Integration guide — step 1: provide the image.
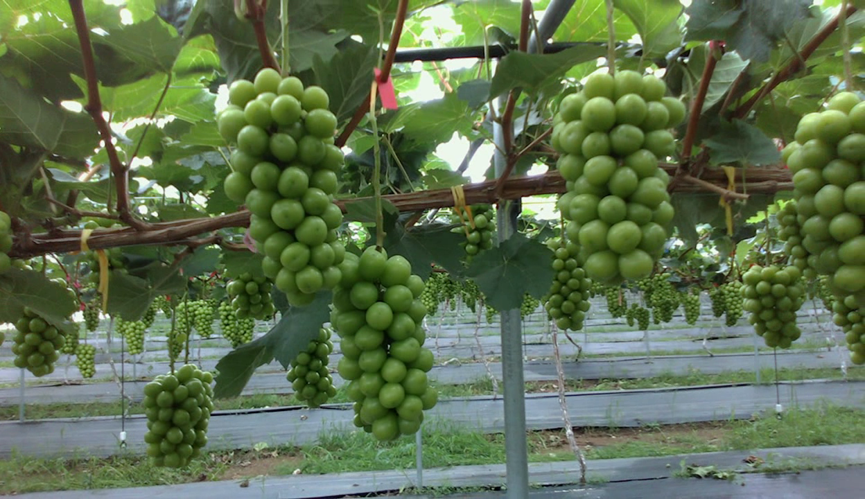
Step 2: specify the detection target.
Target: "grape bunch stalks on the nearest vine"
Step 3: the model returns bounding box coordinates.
[606,1,615,74]
[280,2,290,77]
[370,80,383,246]
[839,1,851,91]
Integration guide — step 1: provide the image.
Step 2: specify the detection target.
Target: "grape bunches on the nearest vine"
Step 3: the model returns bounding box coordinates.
[216,68,345,306]
[331,245,439,442]
[551,69,686,286]
[782,93,864,304]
